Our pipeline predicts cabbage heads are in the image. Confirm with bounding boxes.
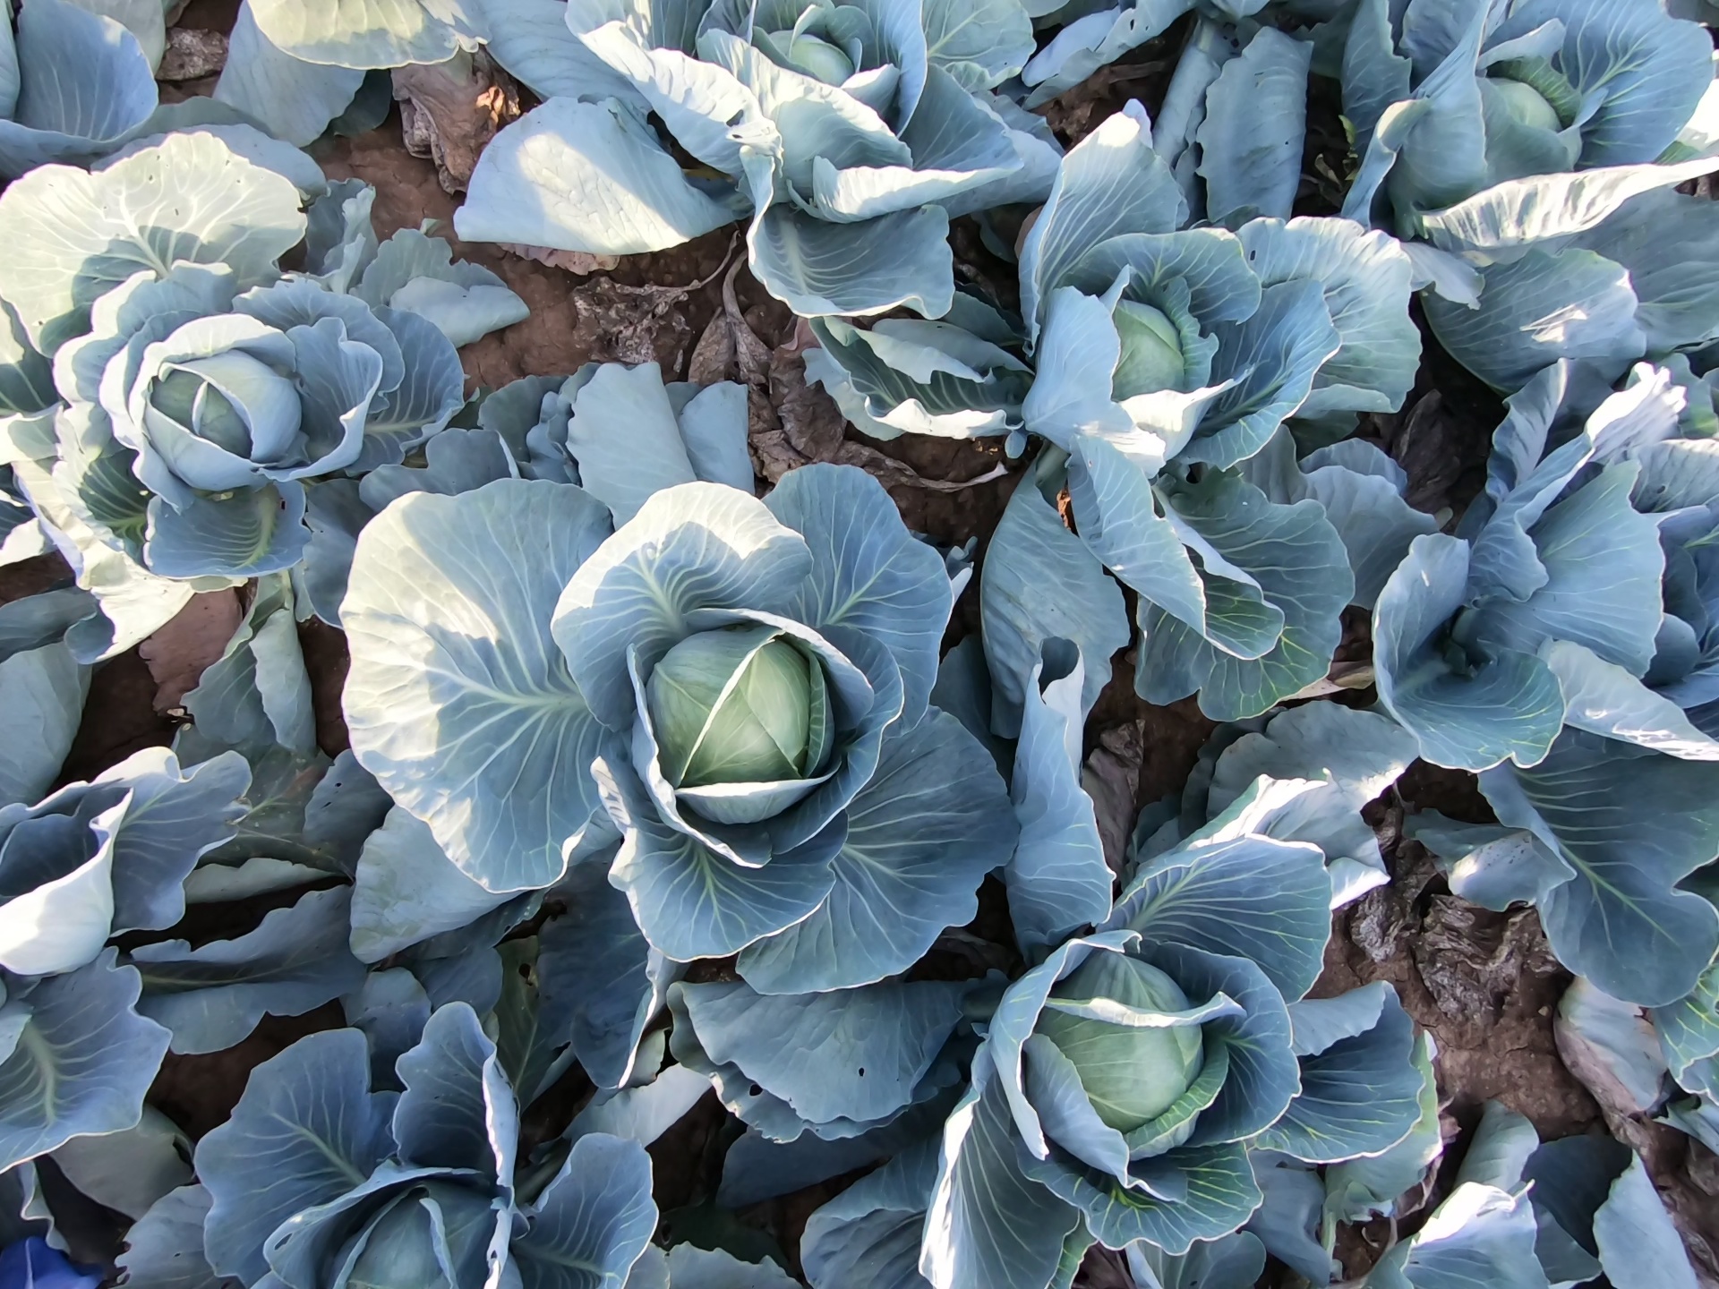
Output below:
[1059,300,1193,441]
[331,1197,514,1287]
[138,350,300,491]
[650,625,834,806]
[1431,77,1564,217]
[737,26,865,166]
[1031,965,1204,1157]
